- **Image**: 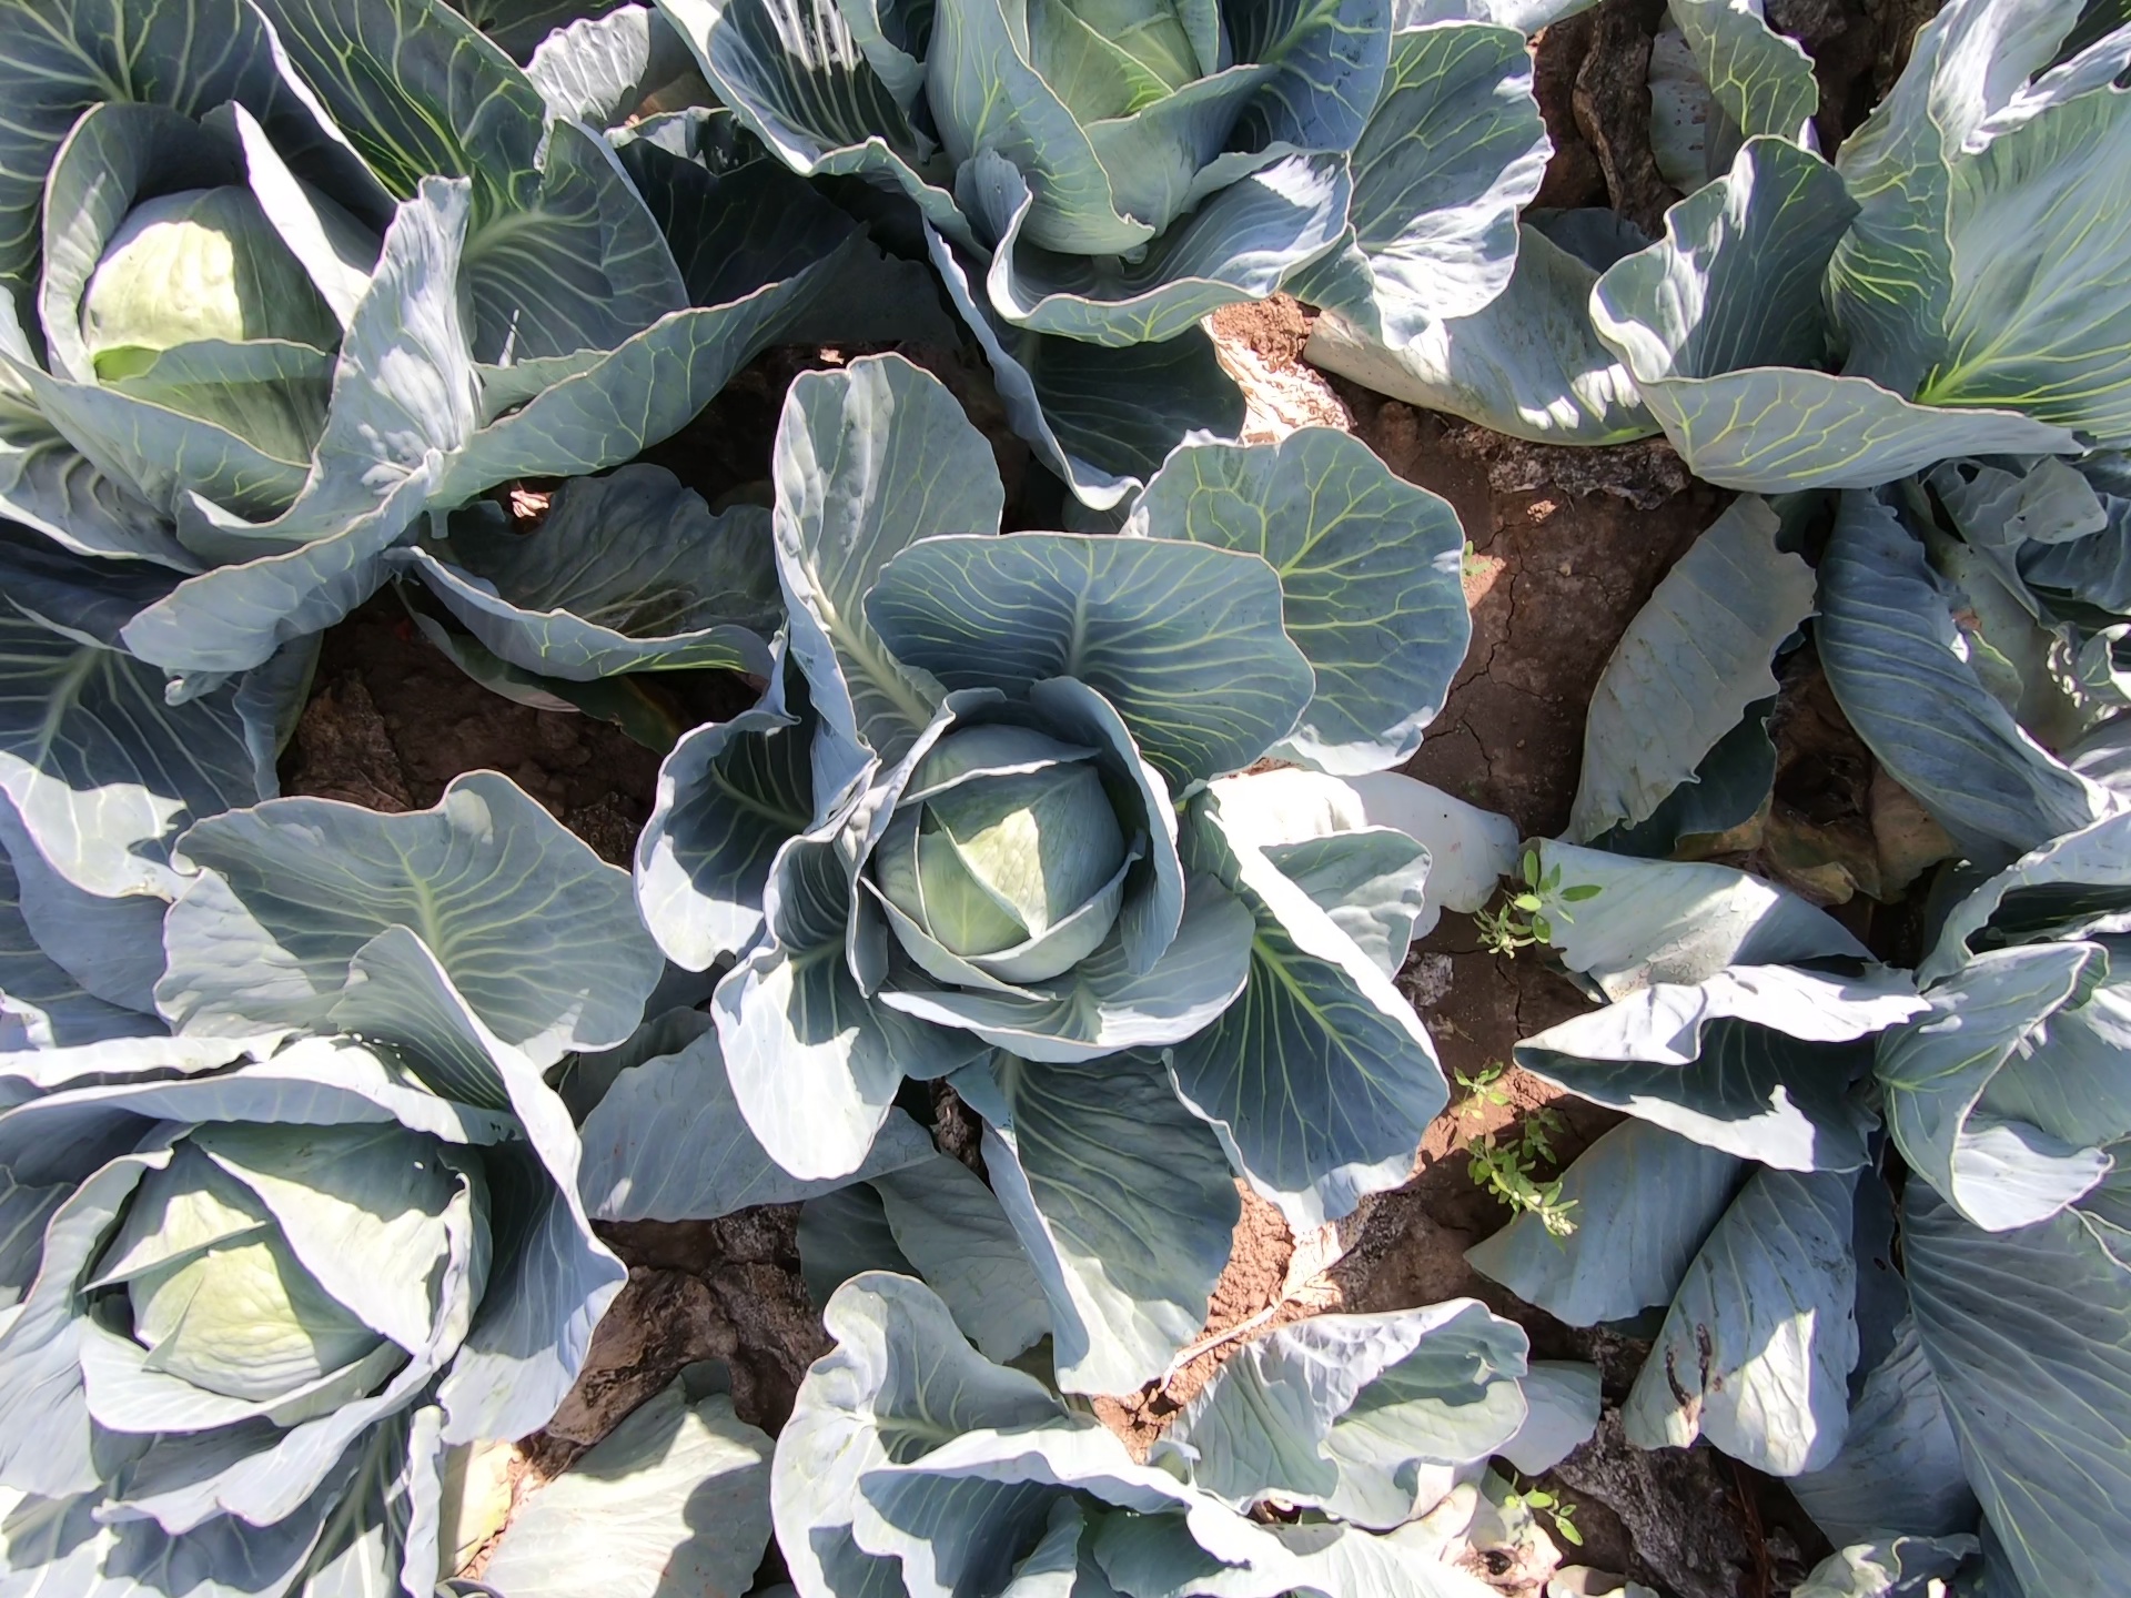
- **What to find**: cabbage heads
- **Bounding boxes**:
[71,188,420,507]
[886,717,1115,994]
[947,0,1233,220]
[119,1072,468,1399]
